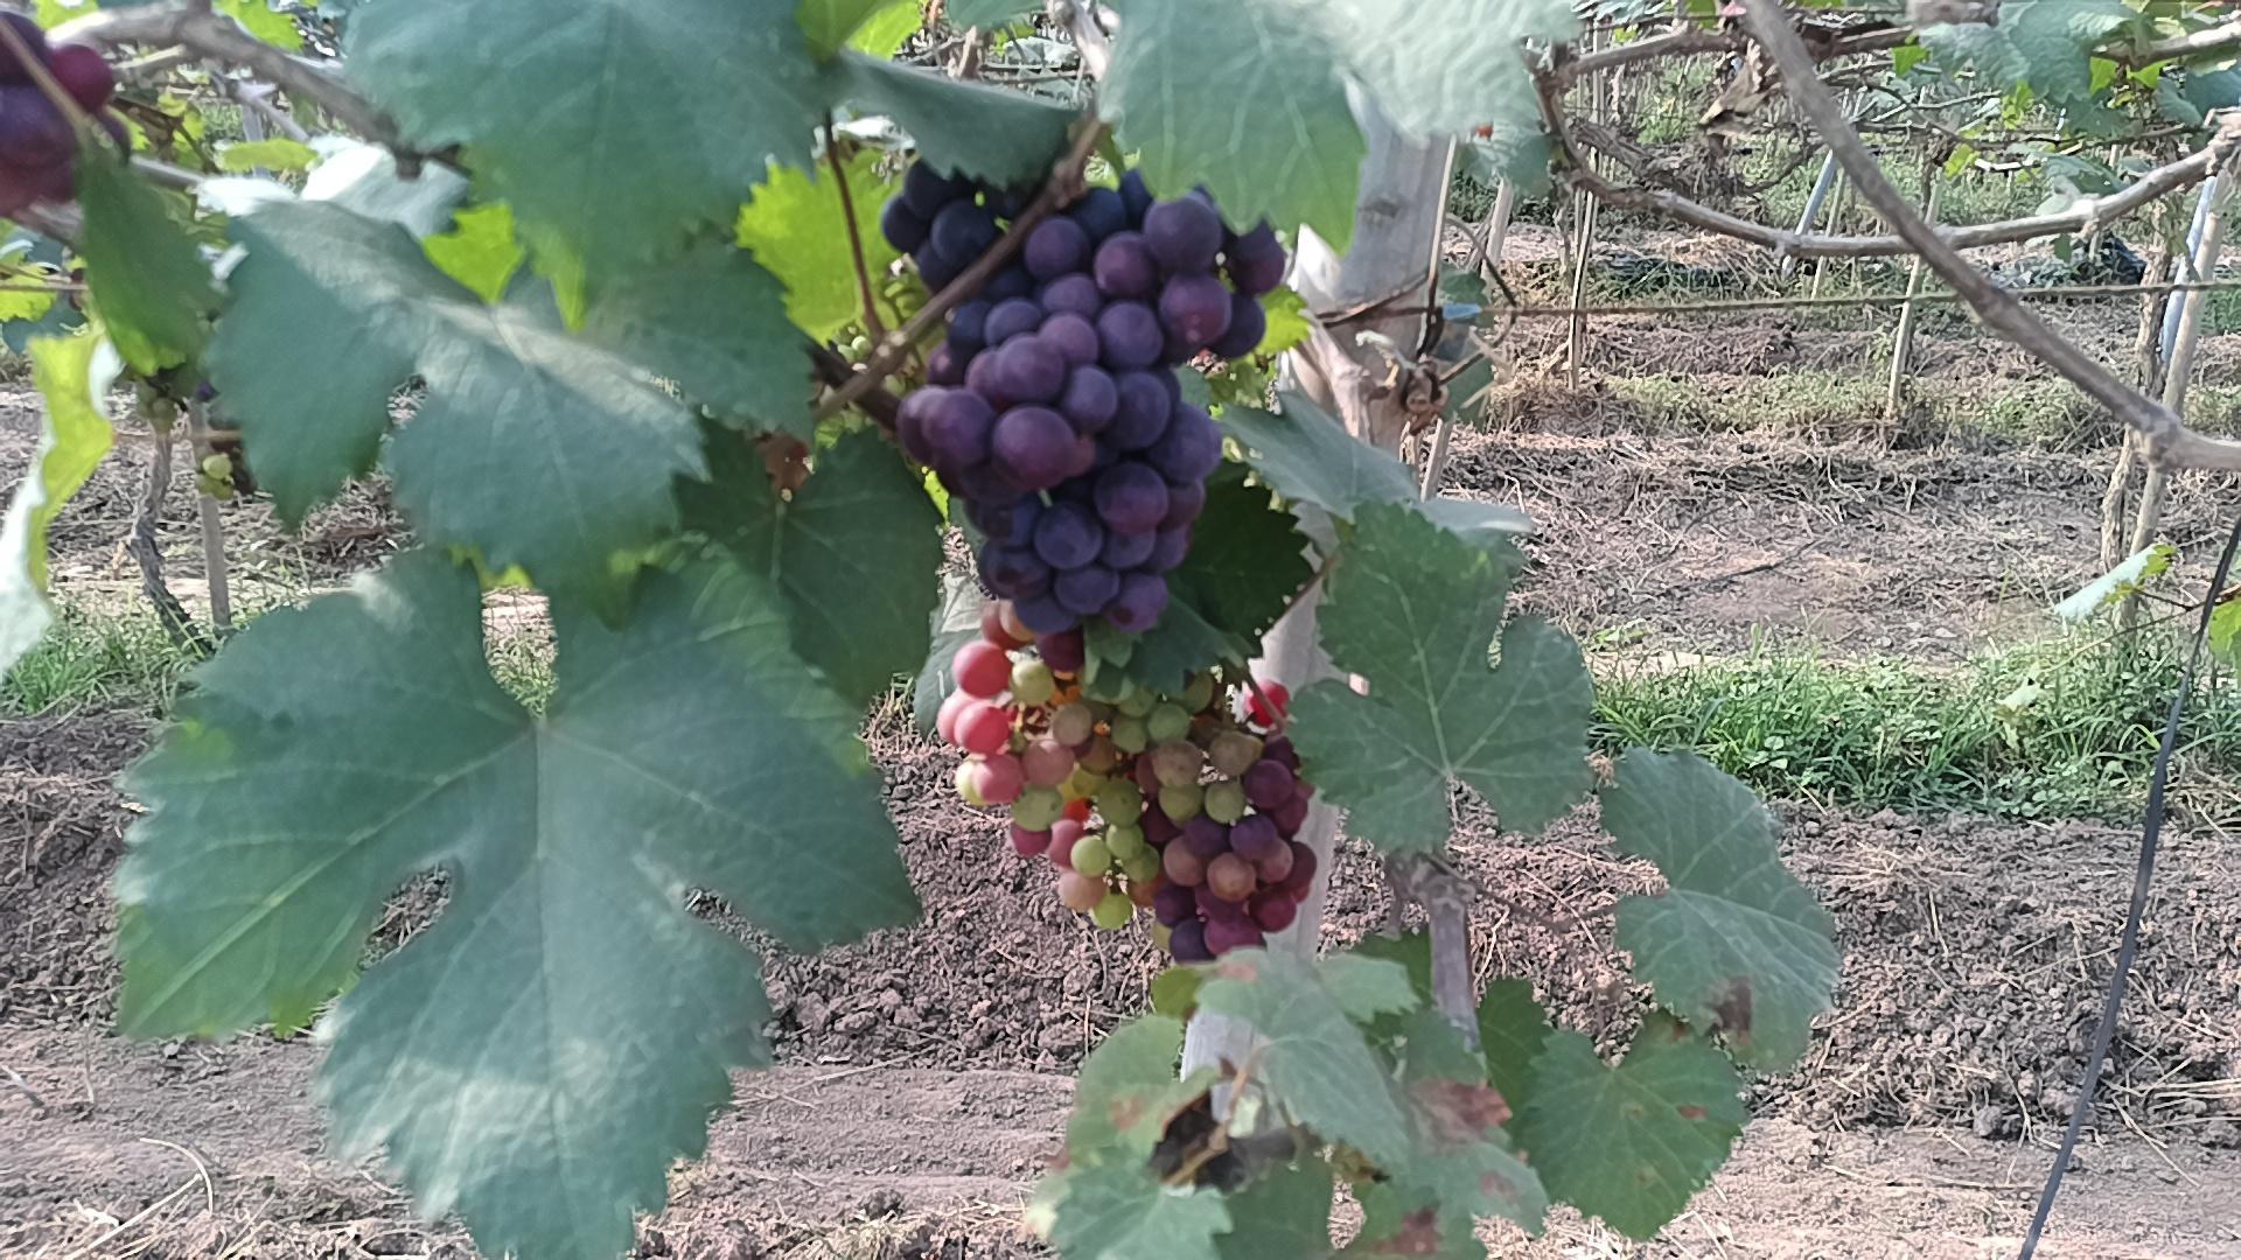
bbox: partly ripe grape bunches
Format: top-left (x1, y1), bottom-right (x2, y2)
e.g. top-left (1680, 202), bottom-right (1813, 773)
top-left (936, 600), bottom-right (1326, 961)
top-left (191, 436), bottom-right (251, 499)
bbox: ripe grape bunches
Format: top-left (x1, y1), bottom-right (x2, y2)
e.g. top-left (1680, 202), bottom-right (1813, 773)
top-left (0, 8), bottom-right (130, 218)
top-left (881, 152), bottom-right (1290, 626)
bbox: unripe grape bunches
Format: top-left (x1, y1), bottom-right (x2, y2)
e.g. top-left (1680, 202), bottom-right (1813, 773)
top-left (127, 317), bottom-right (221, 437)
top-left (826, 323), bottom-right (908, 415)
